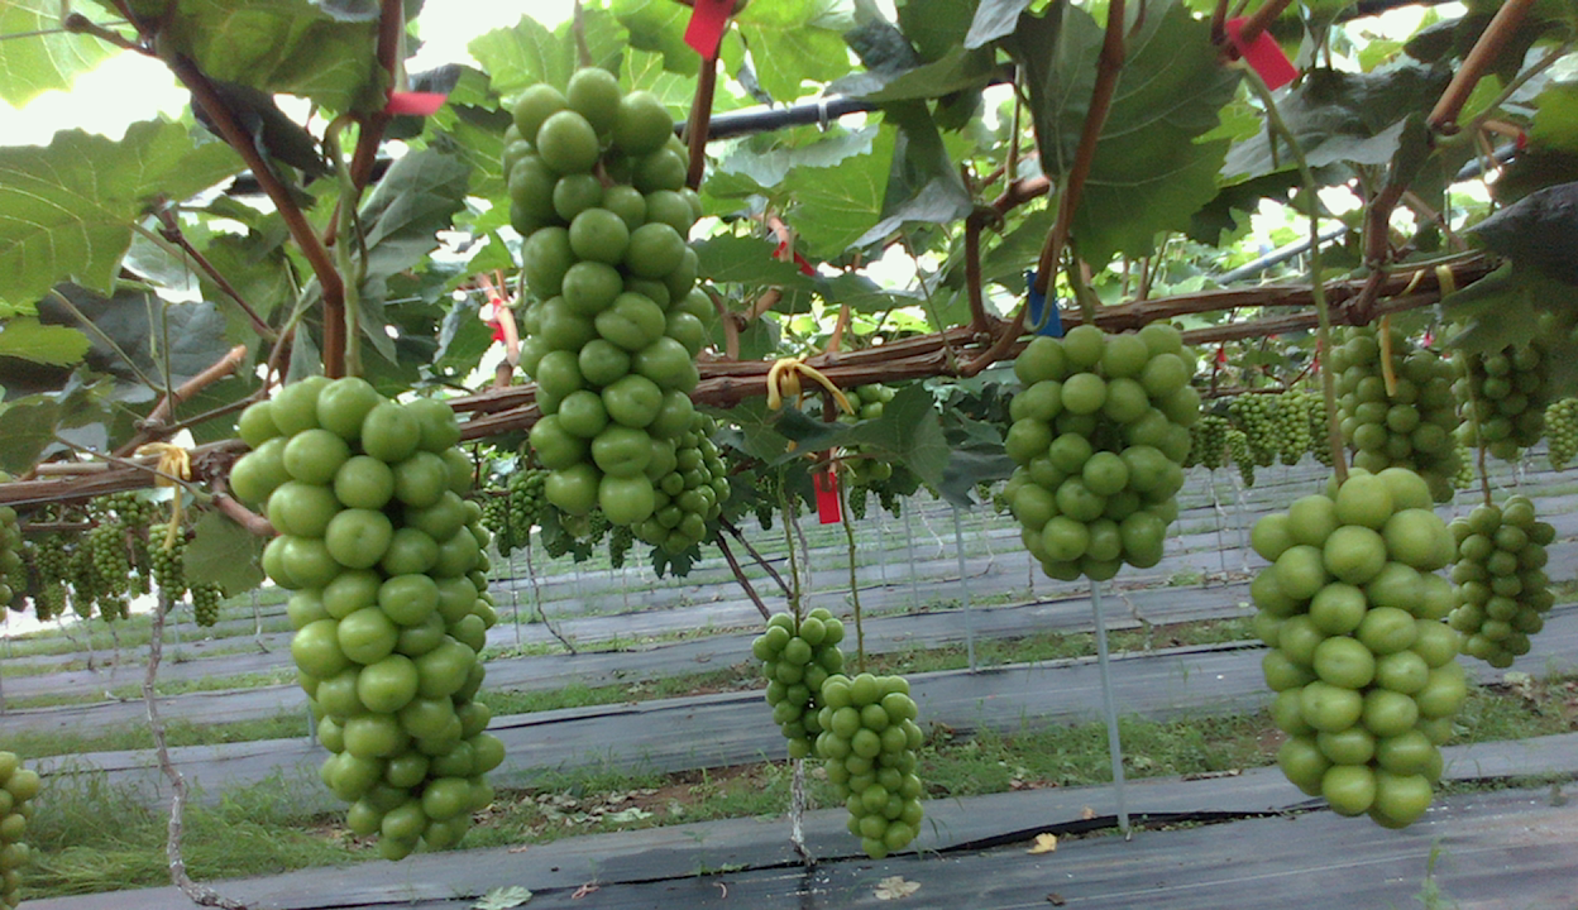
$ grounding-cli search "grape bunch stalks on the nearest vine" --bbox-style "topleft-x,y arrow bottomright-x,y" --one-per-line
322,114 -> 362,375
574,3 -> 594,66
1066,231 -> 1094,322
1242,63 -> 1347,484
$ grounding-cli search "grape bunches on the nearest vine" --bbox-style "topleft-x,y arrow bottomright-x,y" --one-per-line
1251,468 -> 1465,829
233,375 -> 505,862
499,67 -> 713,525
1004,325 -> 1201,583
